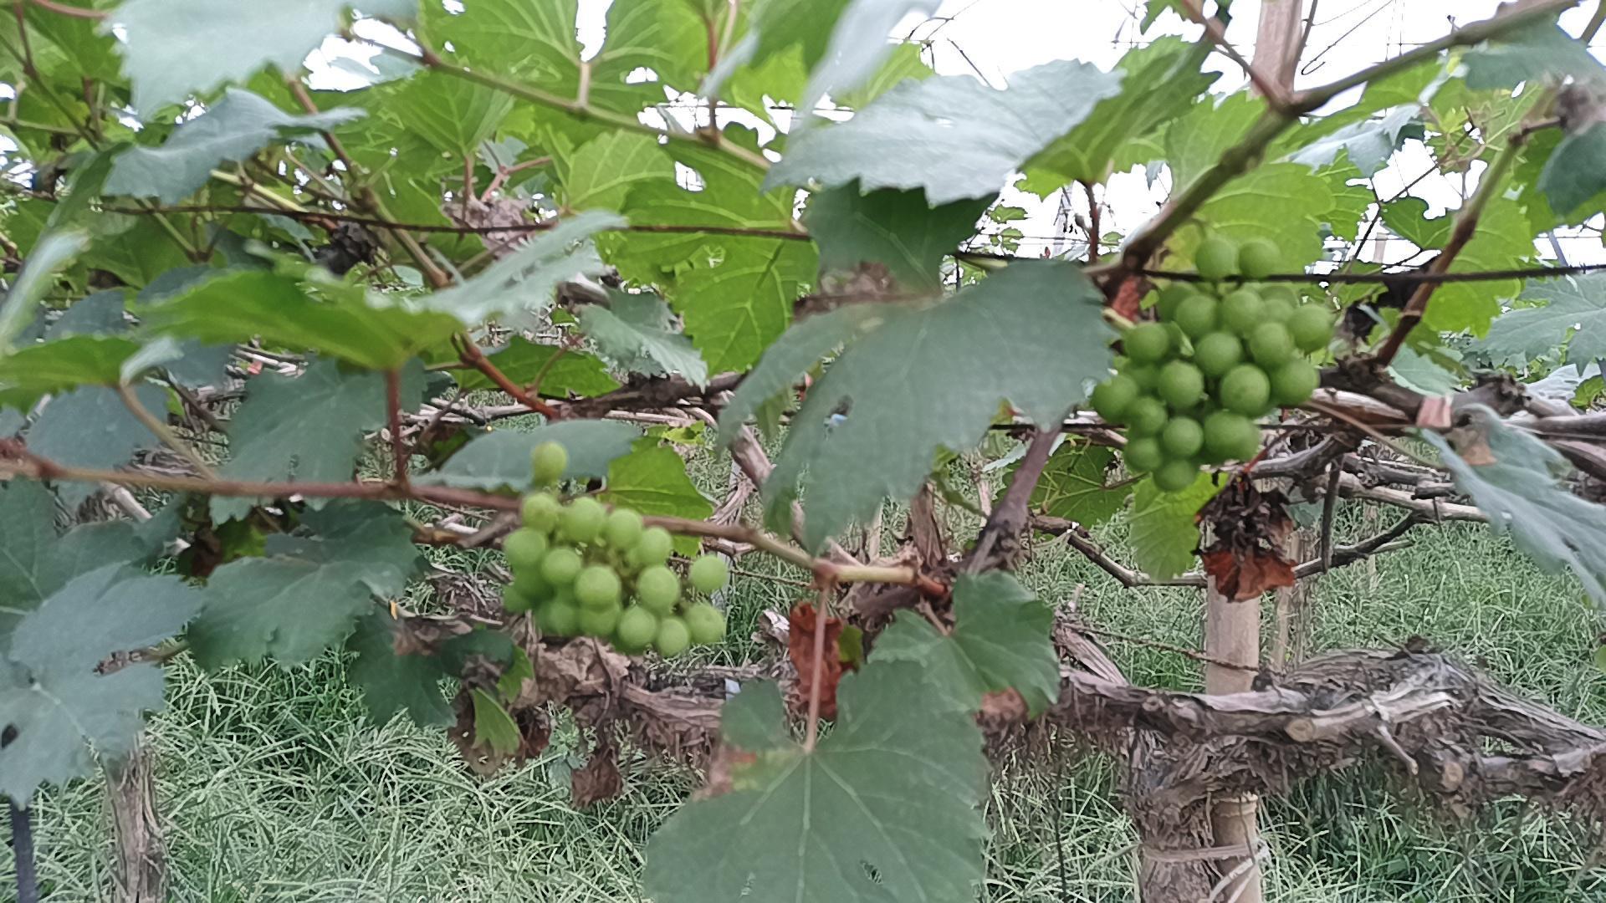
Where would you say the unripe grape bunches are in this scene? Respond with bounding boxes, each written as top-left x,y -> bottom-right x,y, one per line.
503,442 -> 727,657
1091,234 -> 1332,491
